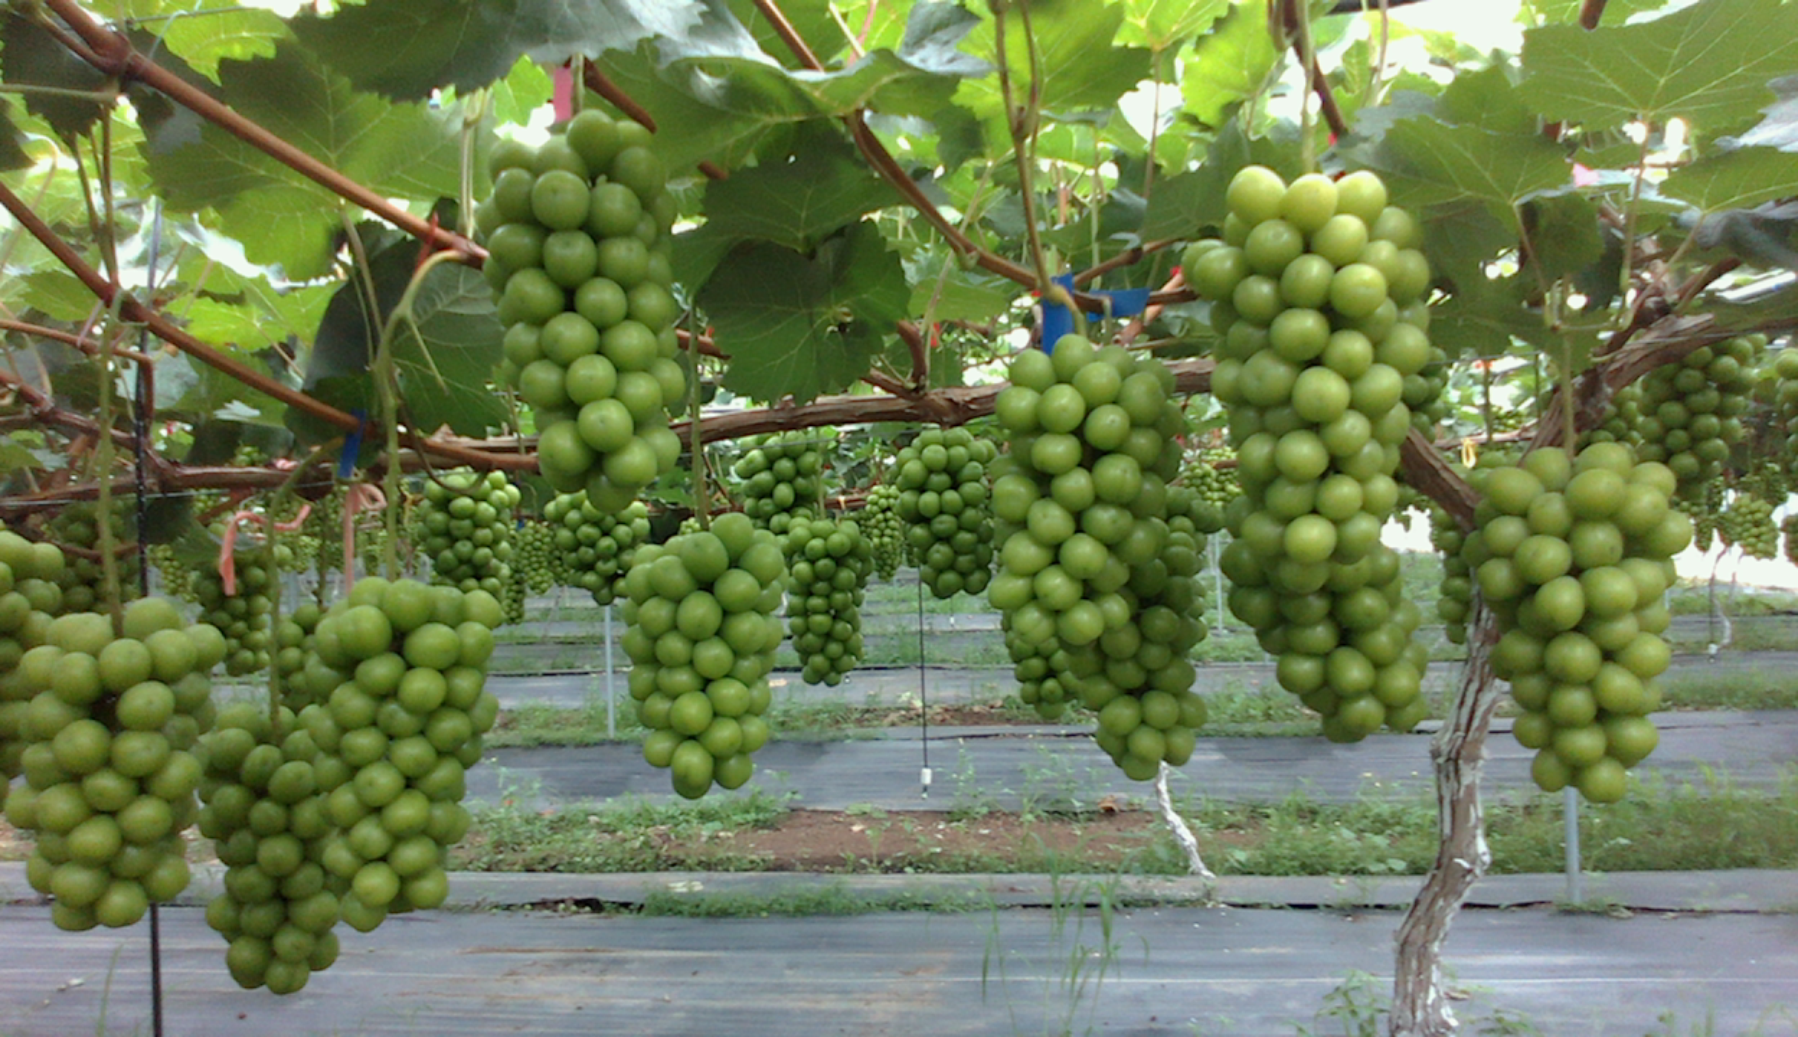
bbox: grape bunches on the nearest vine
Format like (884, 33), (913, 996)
(620, 513), (788, 796)
(3, 599), (226, 932)
(1181, 166), (1434, 565)
(1462, 442), (1693, 807)
(987, 334), (1184, 645)
(1219, 494), (1429, 745)
(1062, 543), (1210, 779)
(197, 706), (349, 994)
(473, 108), (684, 511)
(305, 576), (507, 932)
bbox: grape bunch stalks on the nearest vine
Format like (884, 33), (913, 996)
(264, 434), (347, 745)
(1294, 1), (1317, 174)
(98, 289), (127, 638)
(373, 246), (481, 580)
(1556, 331), (1575, 461)
(689, 300), (709, 530)
(571, 53), (585, 117)
(1042, 284), (1086, 337)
